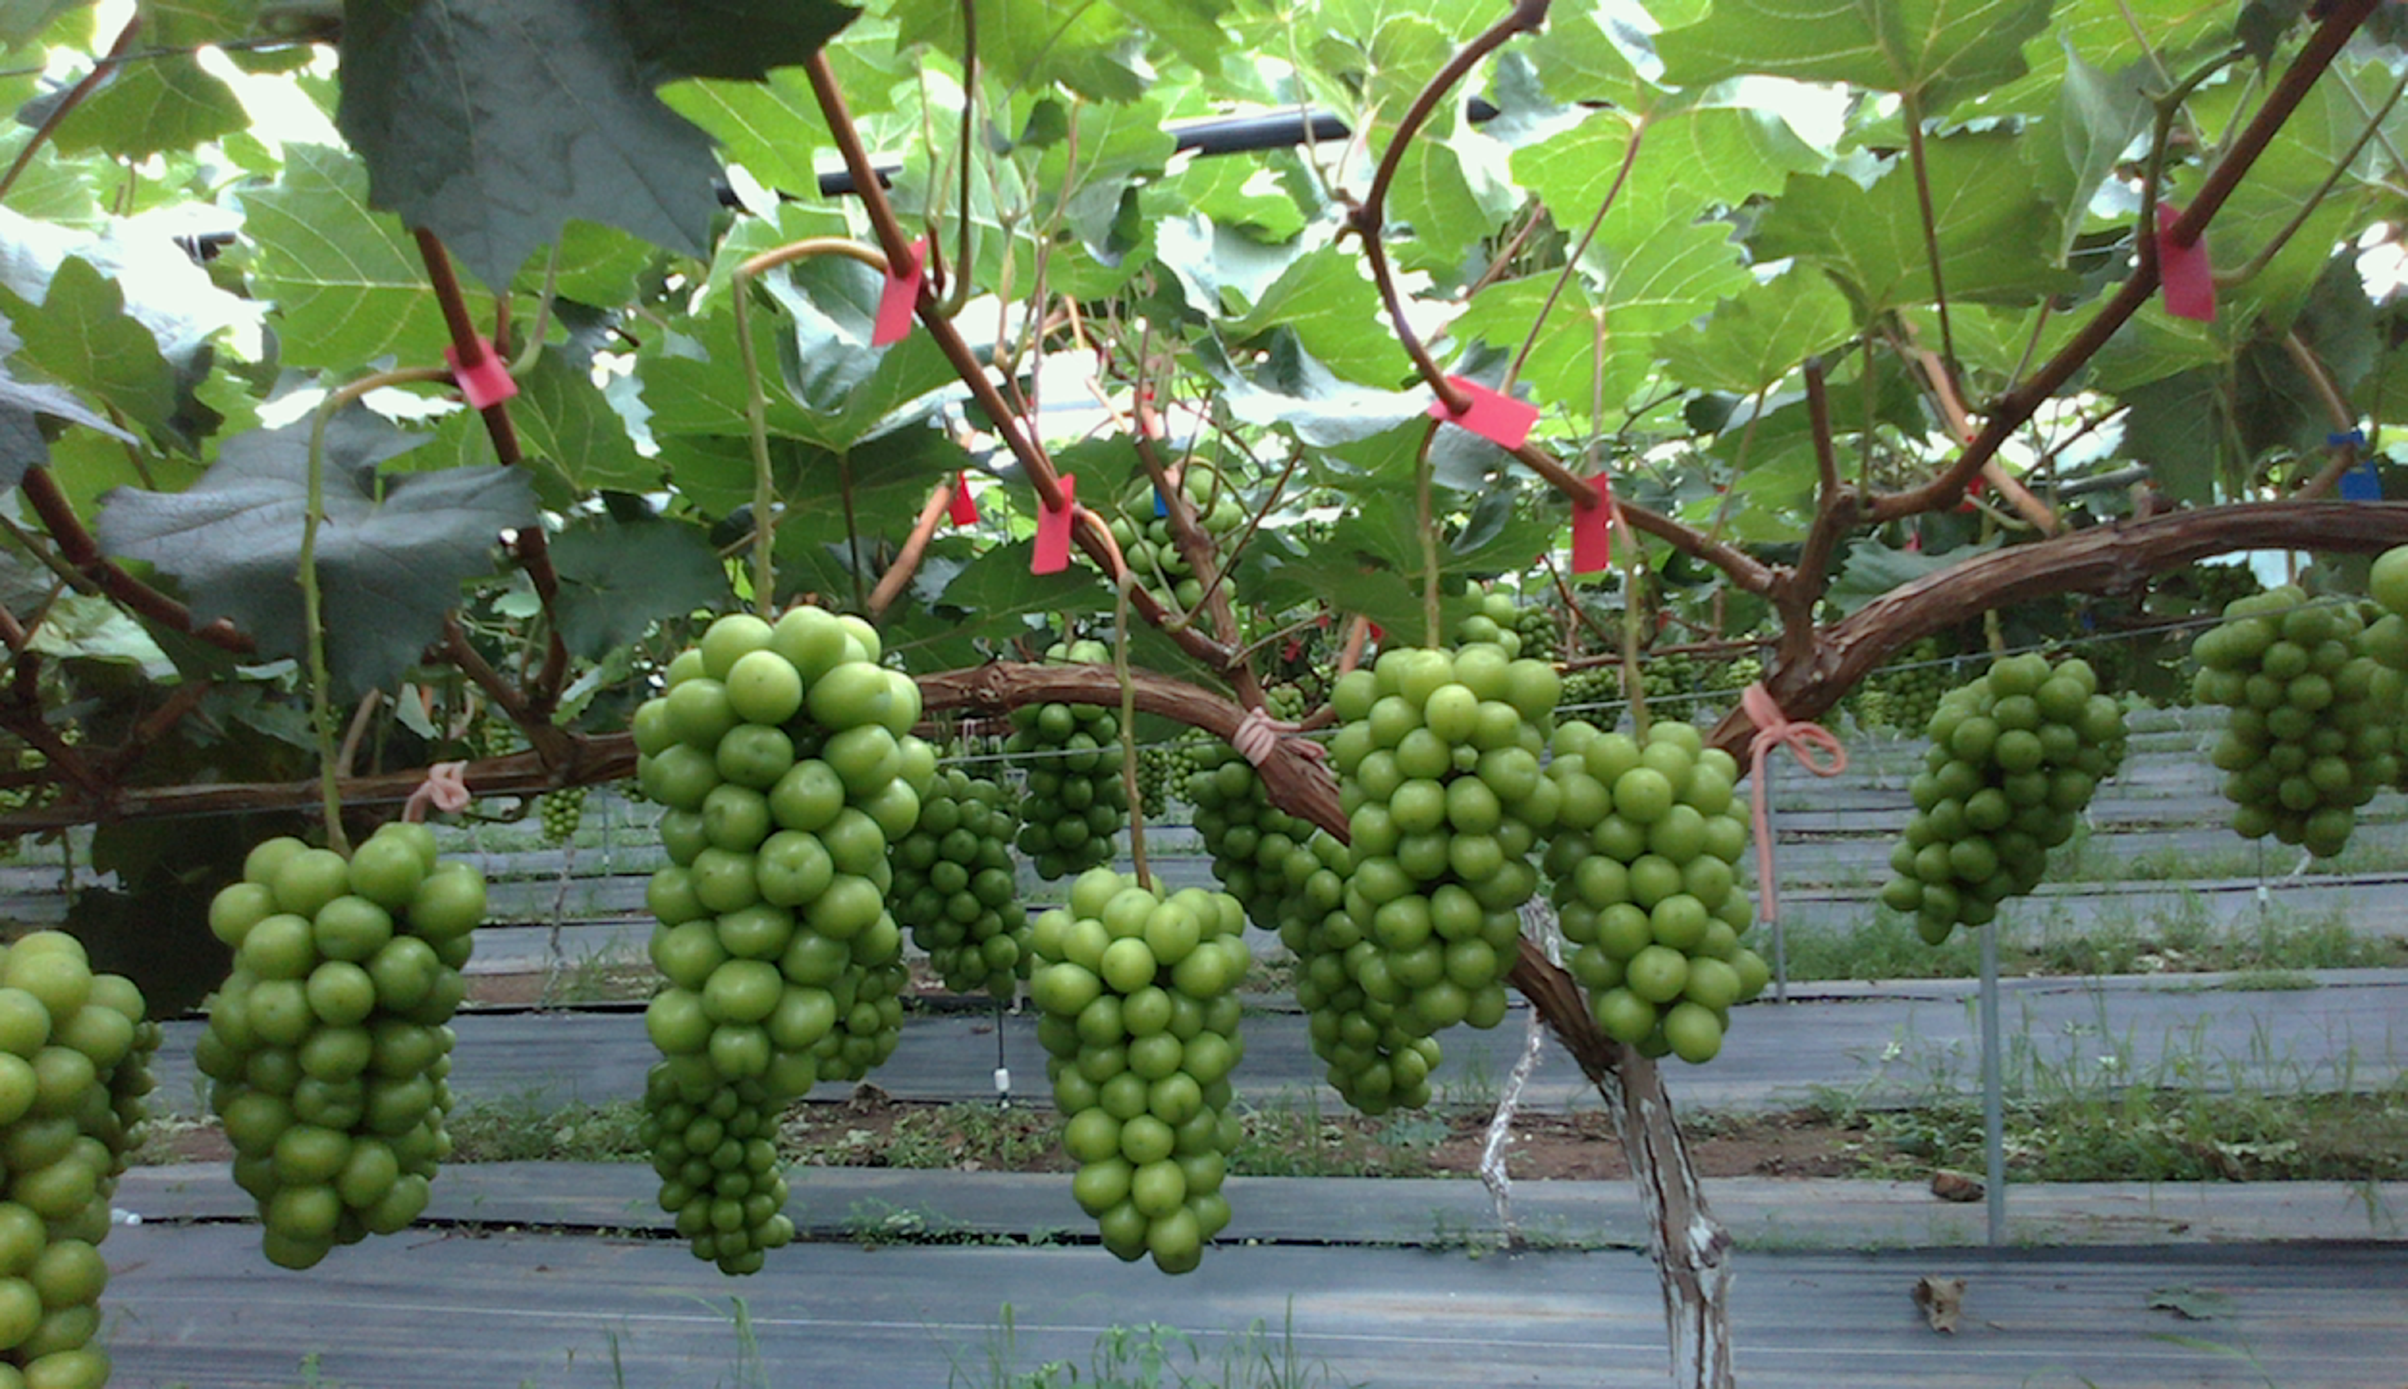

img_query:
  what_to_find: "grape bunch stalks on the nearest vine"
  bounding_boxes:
[1605,502,1650,747]
[1079,507,1152,893]
[731,235,889,625]
[305,367,461,862]
[1416,419,1443,650]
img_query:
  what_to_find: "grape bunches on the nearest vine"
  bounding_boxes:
[1026,868,1252,1275]
[629,606,934,1100]
[197,822,490,1271]
[0,930,143,1387]
[1331,642,1563,1028]
[1542,720,1767,1065]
